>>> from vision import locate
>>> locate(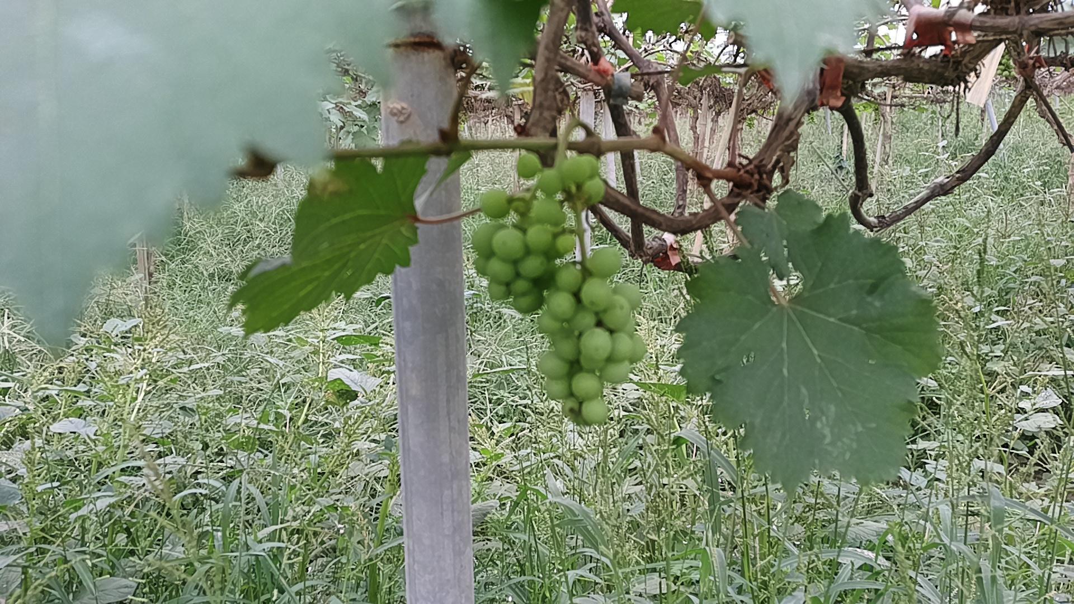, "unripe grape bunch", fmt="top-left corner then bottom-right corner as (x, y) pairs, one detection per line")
(473, 153), (645, 425)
